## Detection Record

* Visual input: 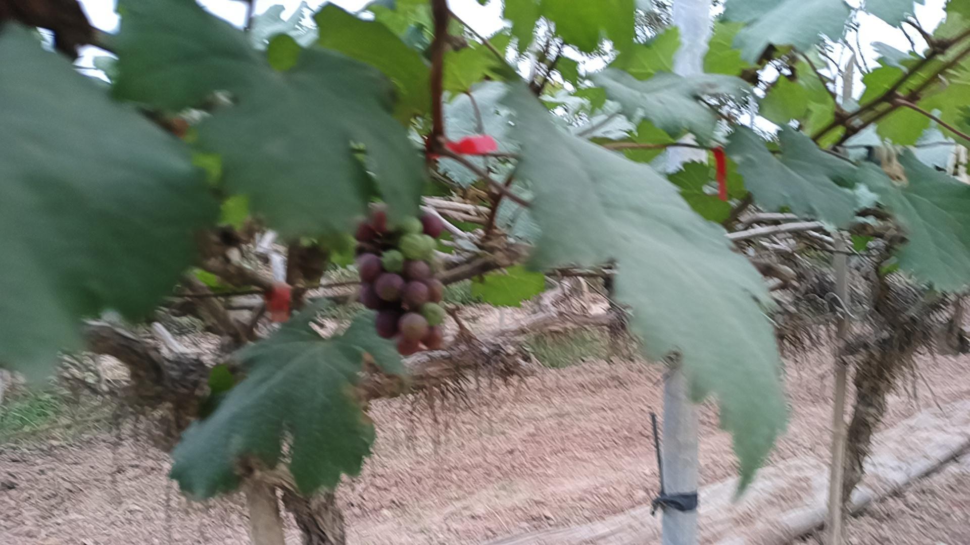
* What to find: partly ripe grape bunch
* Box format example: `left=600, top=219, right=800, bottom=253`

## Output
left=355, top=205, right=445, bottom=355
